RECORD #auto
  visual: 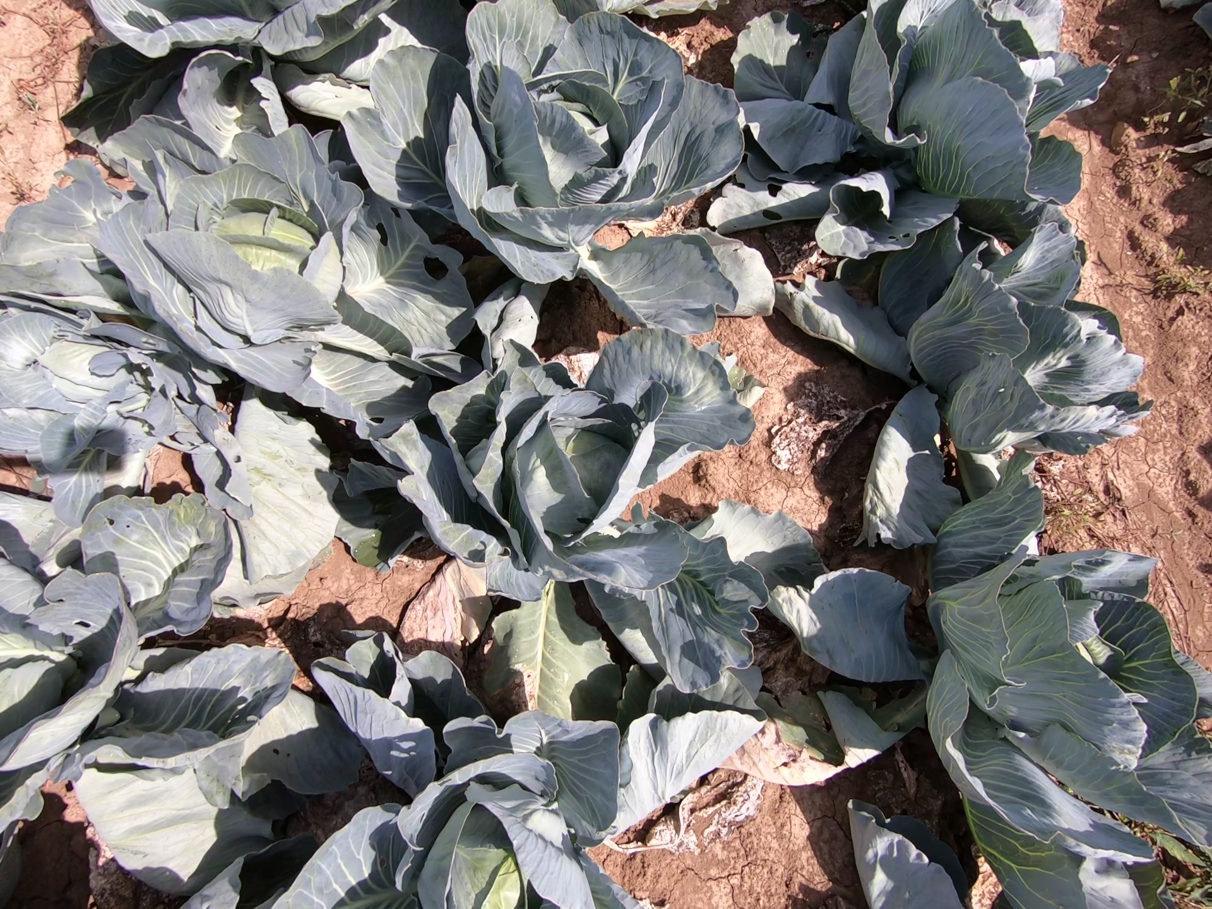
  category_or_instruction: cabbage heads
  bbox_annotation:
[196,206,336,328]
[971,609,1100,734]
[417,792,548,908]
[39,331,134,409]
[511,93,615,211]
[509,413,634,530]
[3,595,73,751]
